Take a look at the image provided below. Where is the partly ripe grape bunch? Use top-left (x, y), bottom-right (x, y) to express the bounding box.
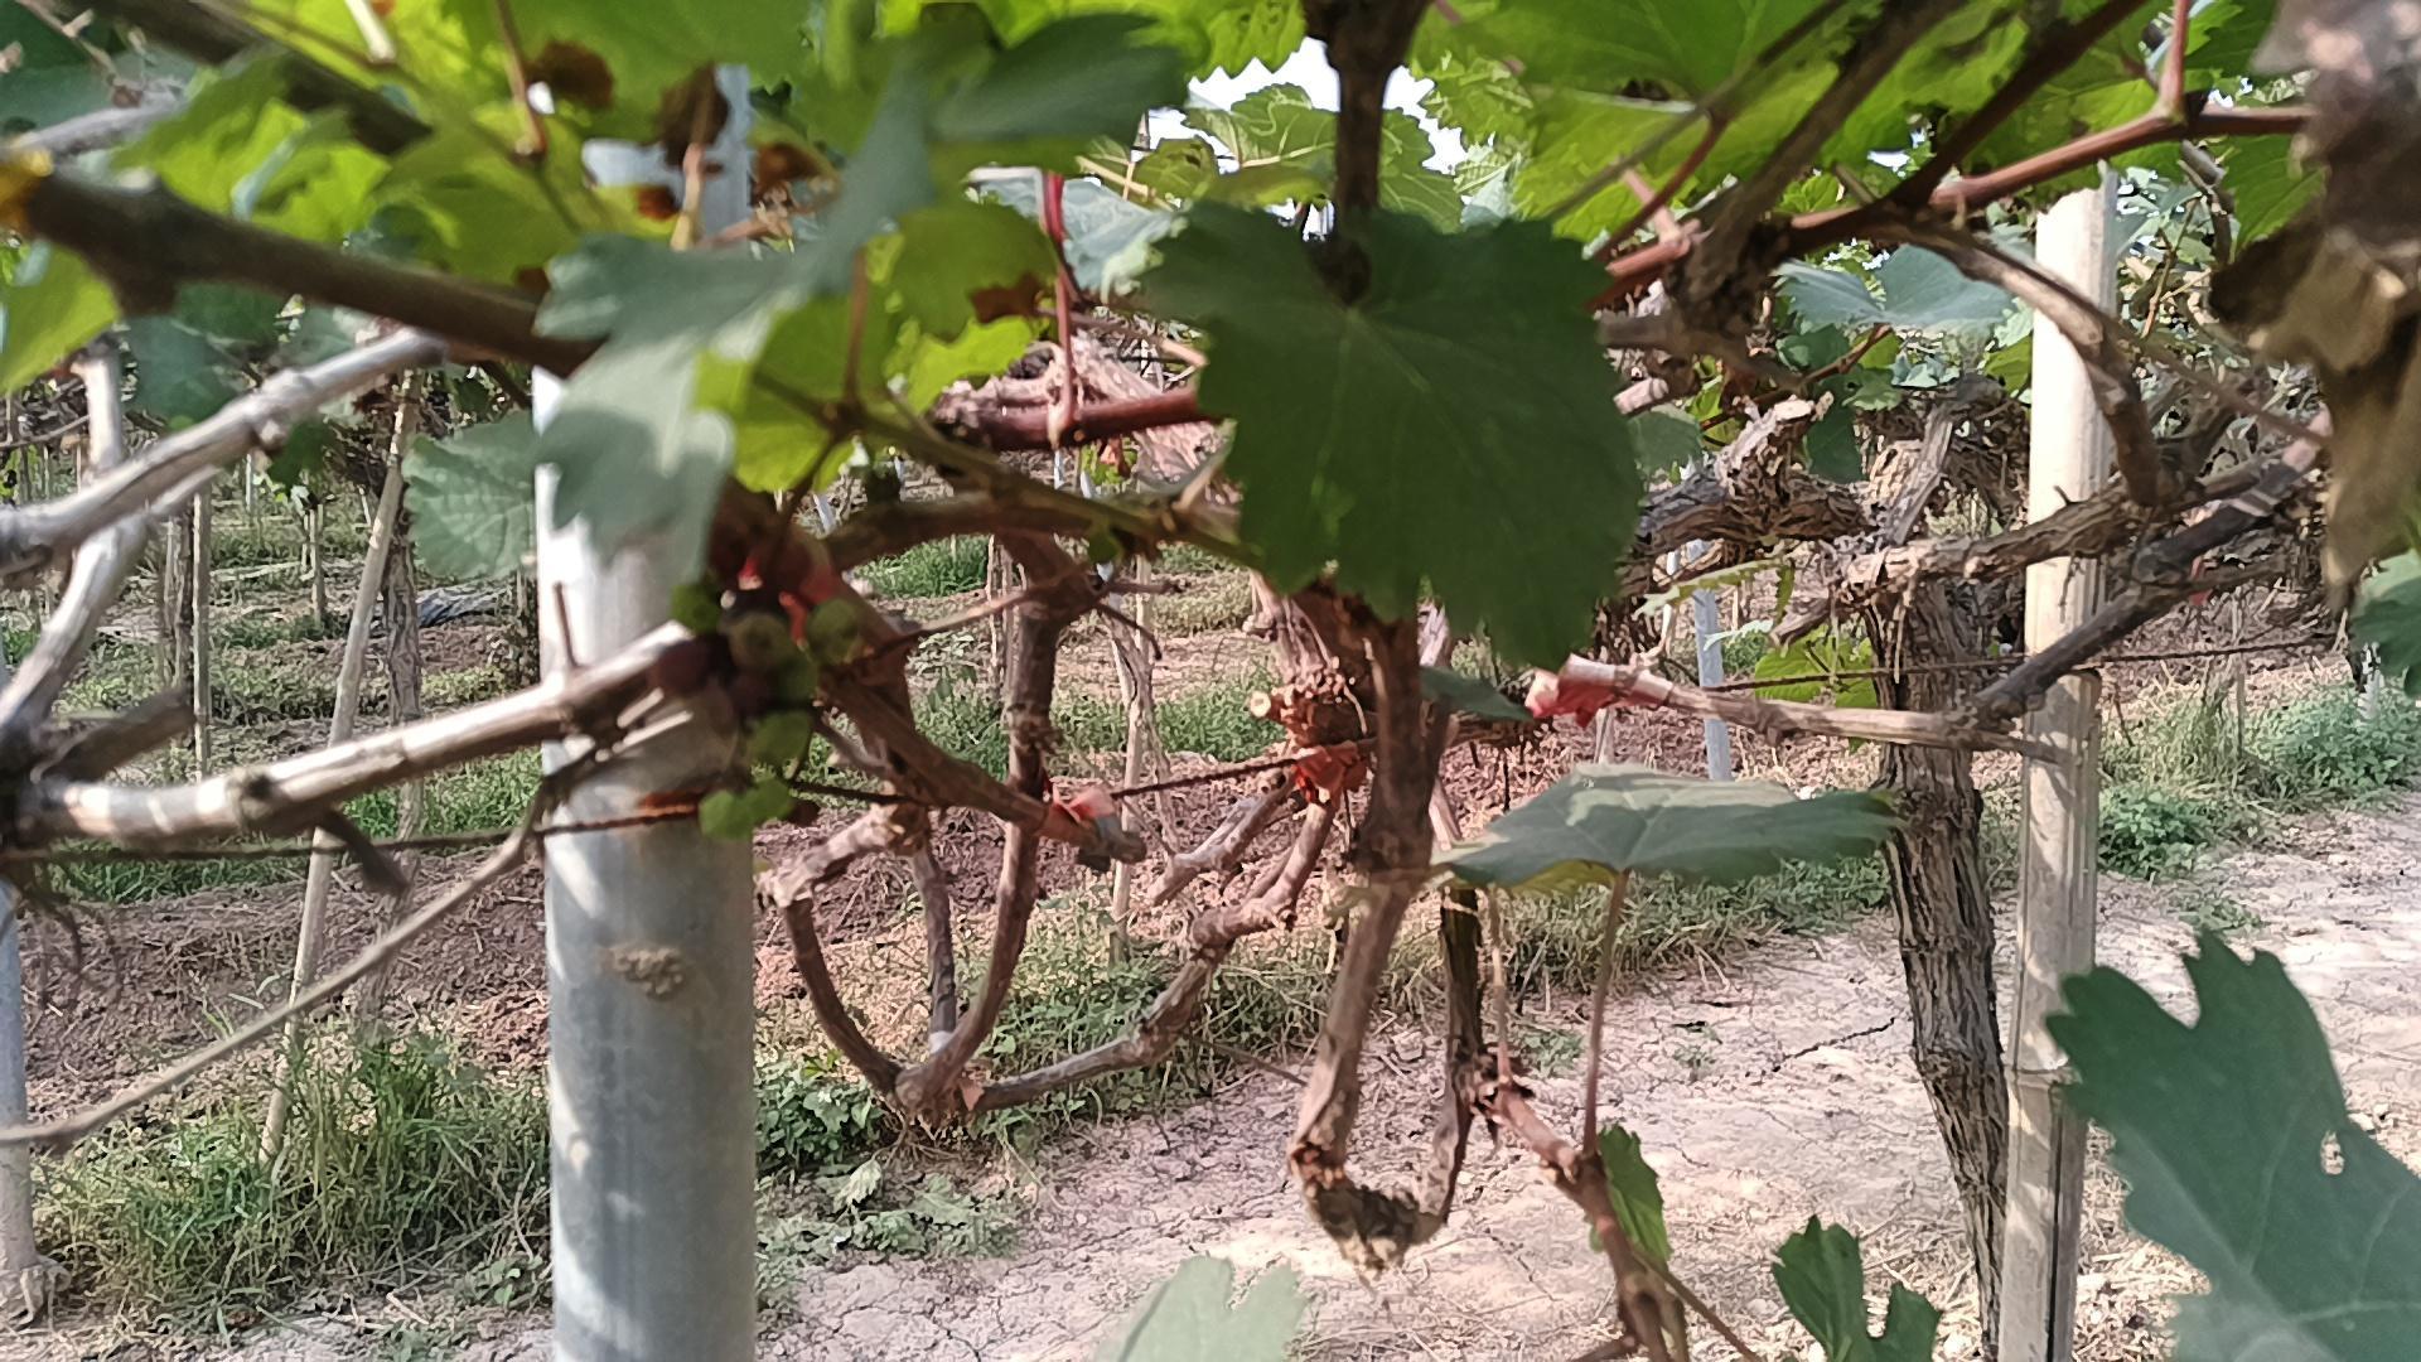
top-left (657, 520), bottom-right (903, 836)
